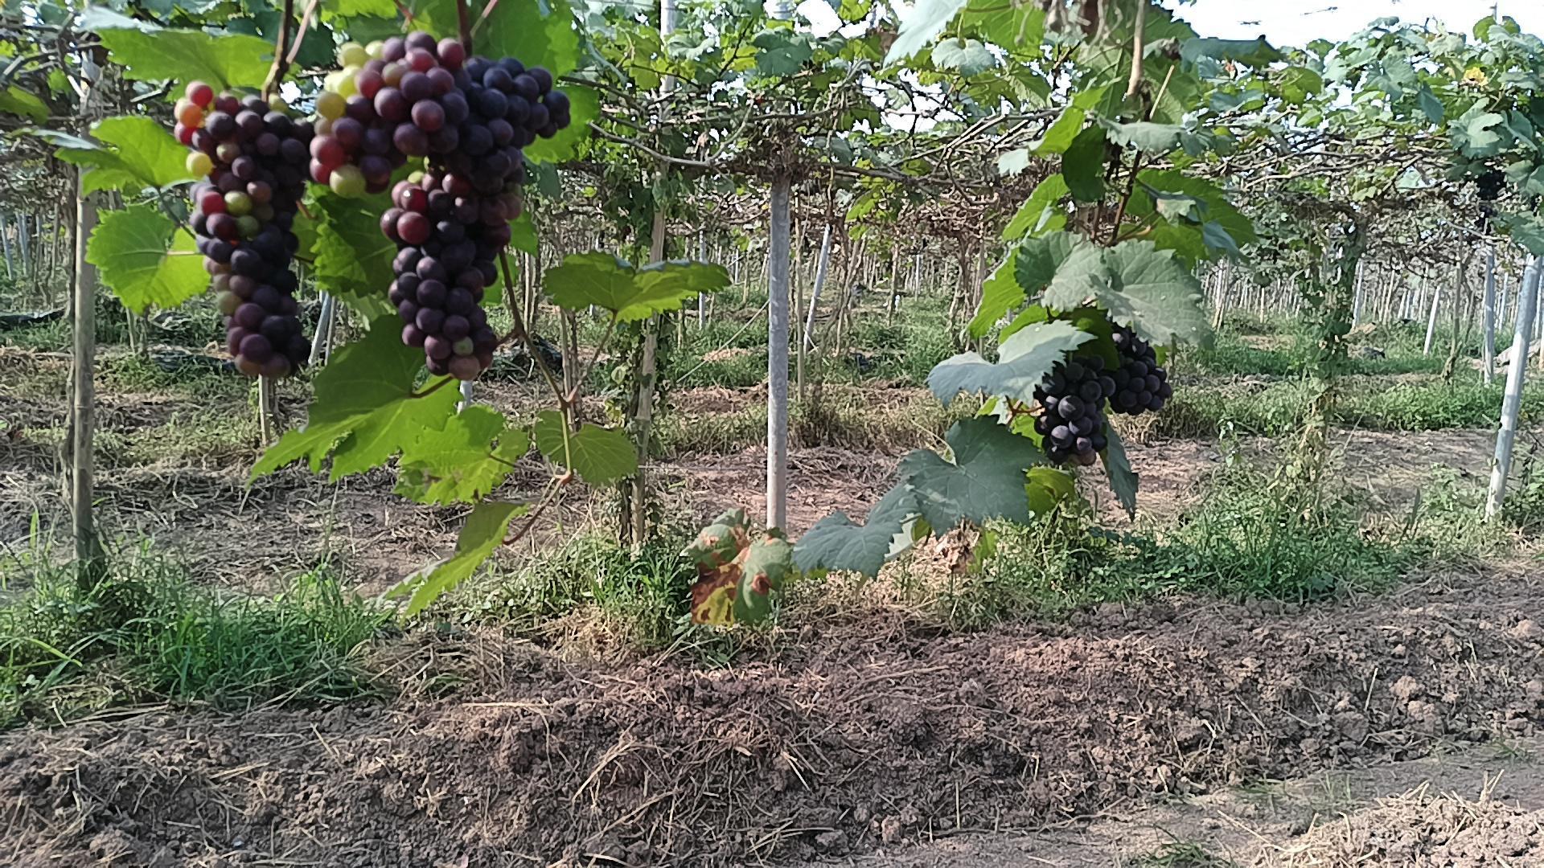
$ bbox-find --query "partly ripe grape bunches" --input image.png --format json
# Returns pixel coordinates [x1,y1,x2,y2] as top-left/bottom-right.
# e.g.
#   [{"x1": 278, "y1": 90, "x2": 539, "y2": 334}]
[
  {"x1": 309, "y1": 31, "x2": 570, "y2": 380},
  {"x1": 173, "y1": 80, "x2": 314, "y2": 379}
]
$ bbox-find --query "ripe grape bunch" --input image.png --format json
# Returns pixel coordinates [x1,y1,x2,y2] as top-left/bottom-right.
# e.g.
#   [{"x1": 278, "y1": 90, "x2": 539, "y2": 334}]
[{"x1": 1033, "y1": 327, "x2": 1172, "y2": 465}]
